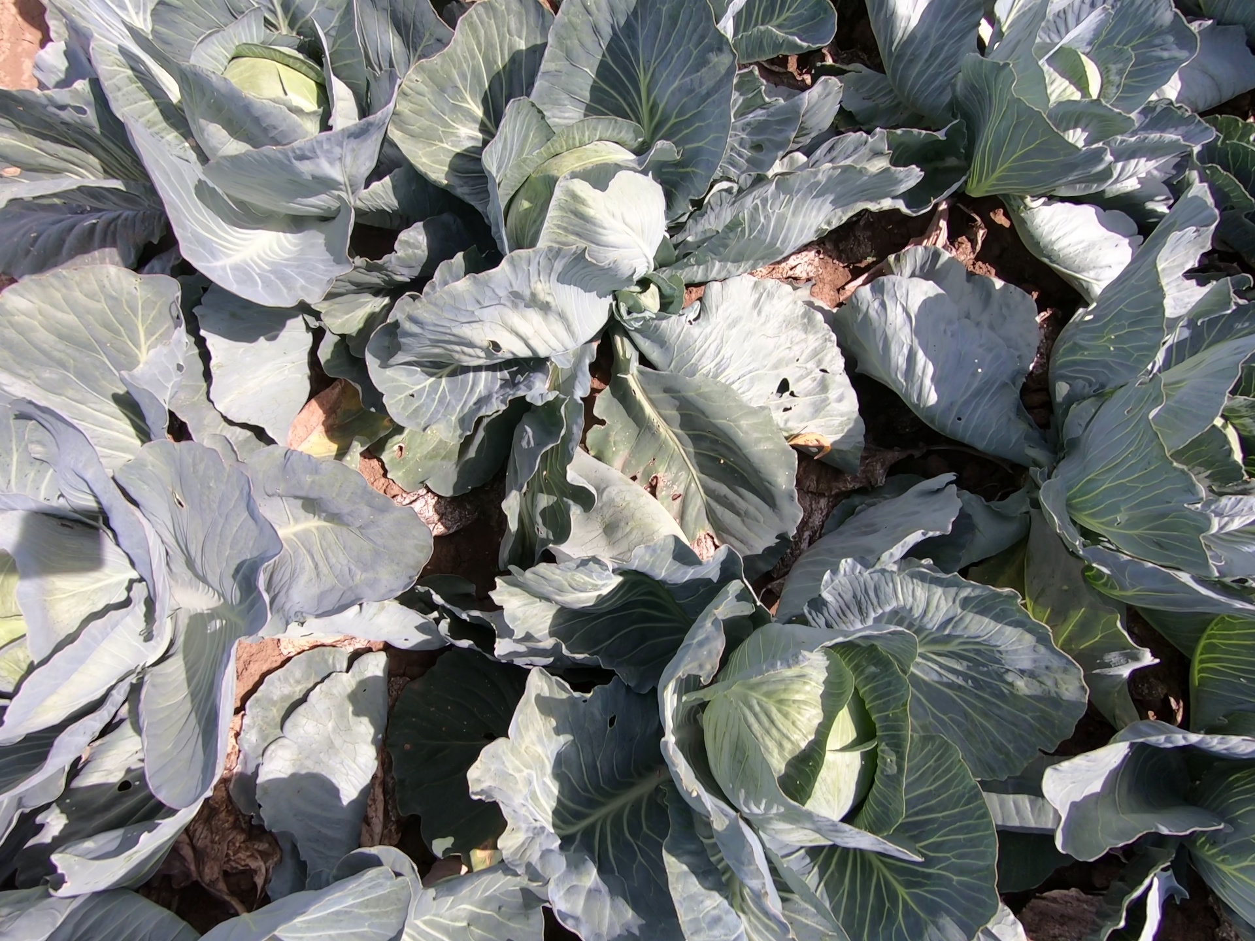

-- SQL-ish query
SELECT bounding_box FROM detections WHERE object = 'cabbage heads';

[183,31,363,208]
[1095,392,1247,514]
[1008,41,1102,129]
[499,131,665,286]
[0,510,151,704]
[701,635,895,842]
